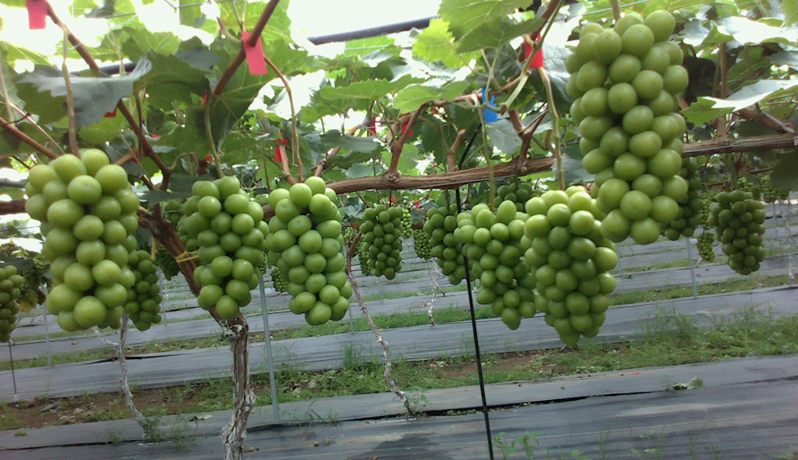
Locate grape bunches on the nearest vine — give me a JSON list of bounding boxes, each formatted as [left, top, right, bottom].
[[184, 173, 267, 319], [565, 10, 689, 245], [24, 146, 141, 335], [453, 201, 535, 330], [265, 175, 354, 326], [520, 185, 618, 344]]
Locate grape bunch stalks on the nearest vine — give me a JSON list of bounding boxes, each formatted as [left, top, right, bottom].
[[537, 67, 565, 189], [61, 31, 81, 158], [610, 1, 619, 20], [265, 59, 304, 180], [205, 94, 224, 178], [478, 109, 494, 211]]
